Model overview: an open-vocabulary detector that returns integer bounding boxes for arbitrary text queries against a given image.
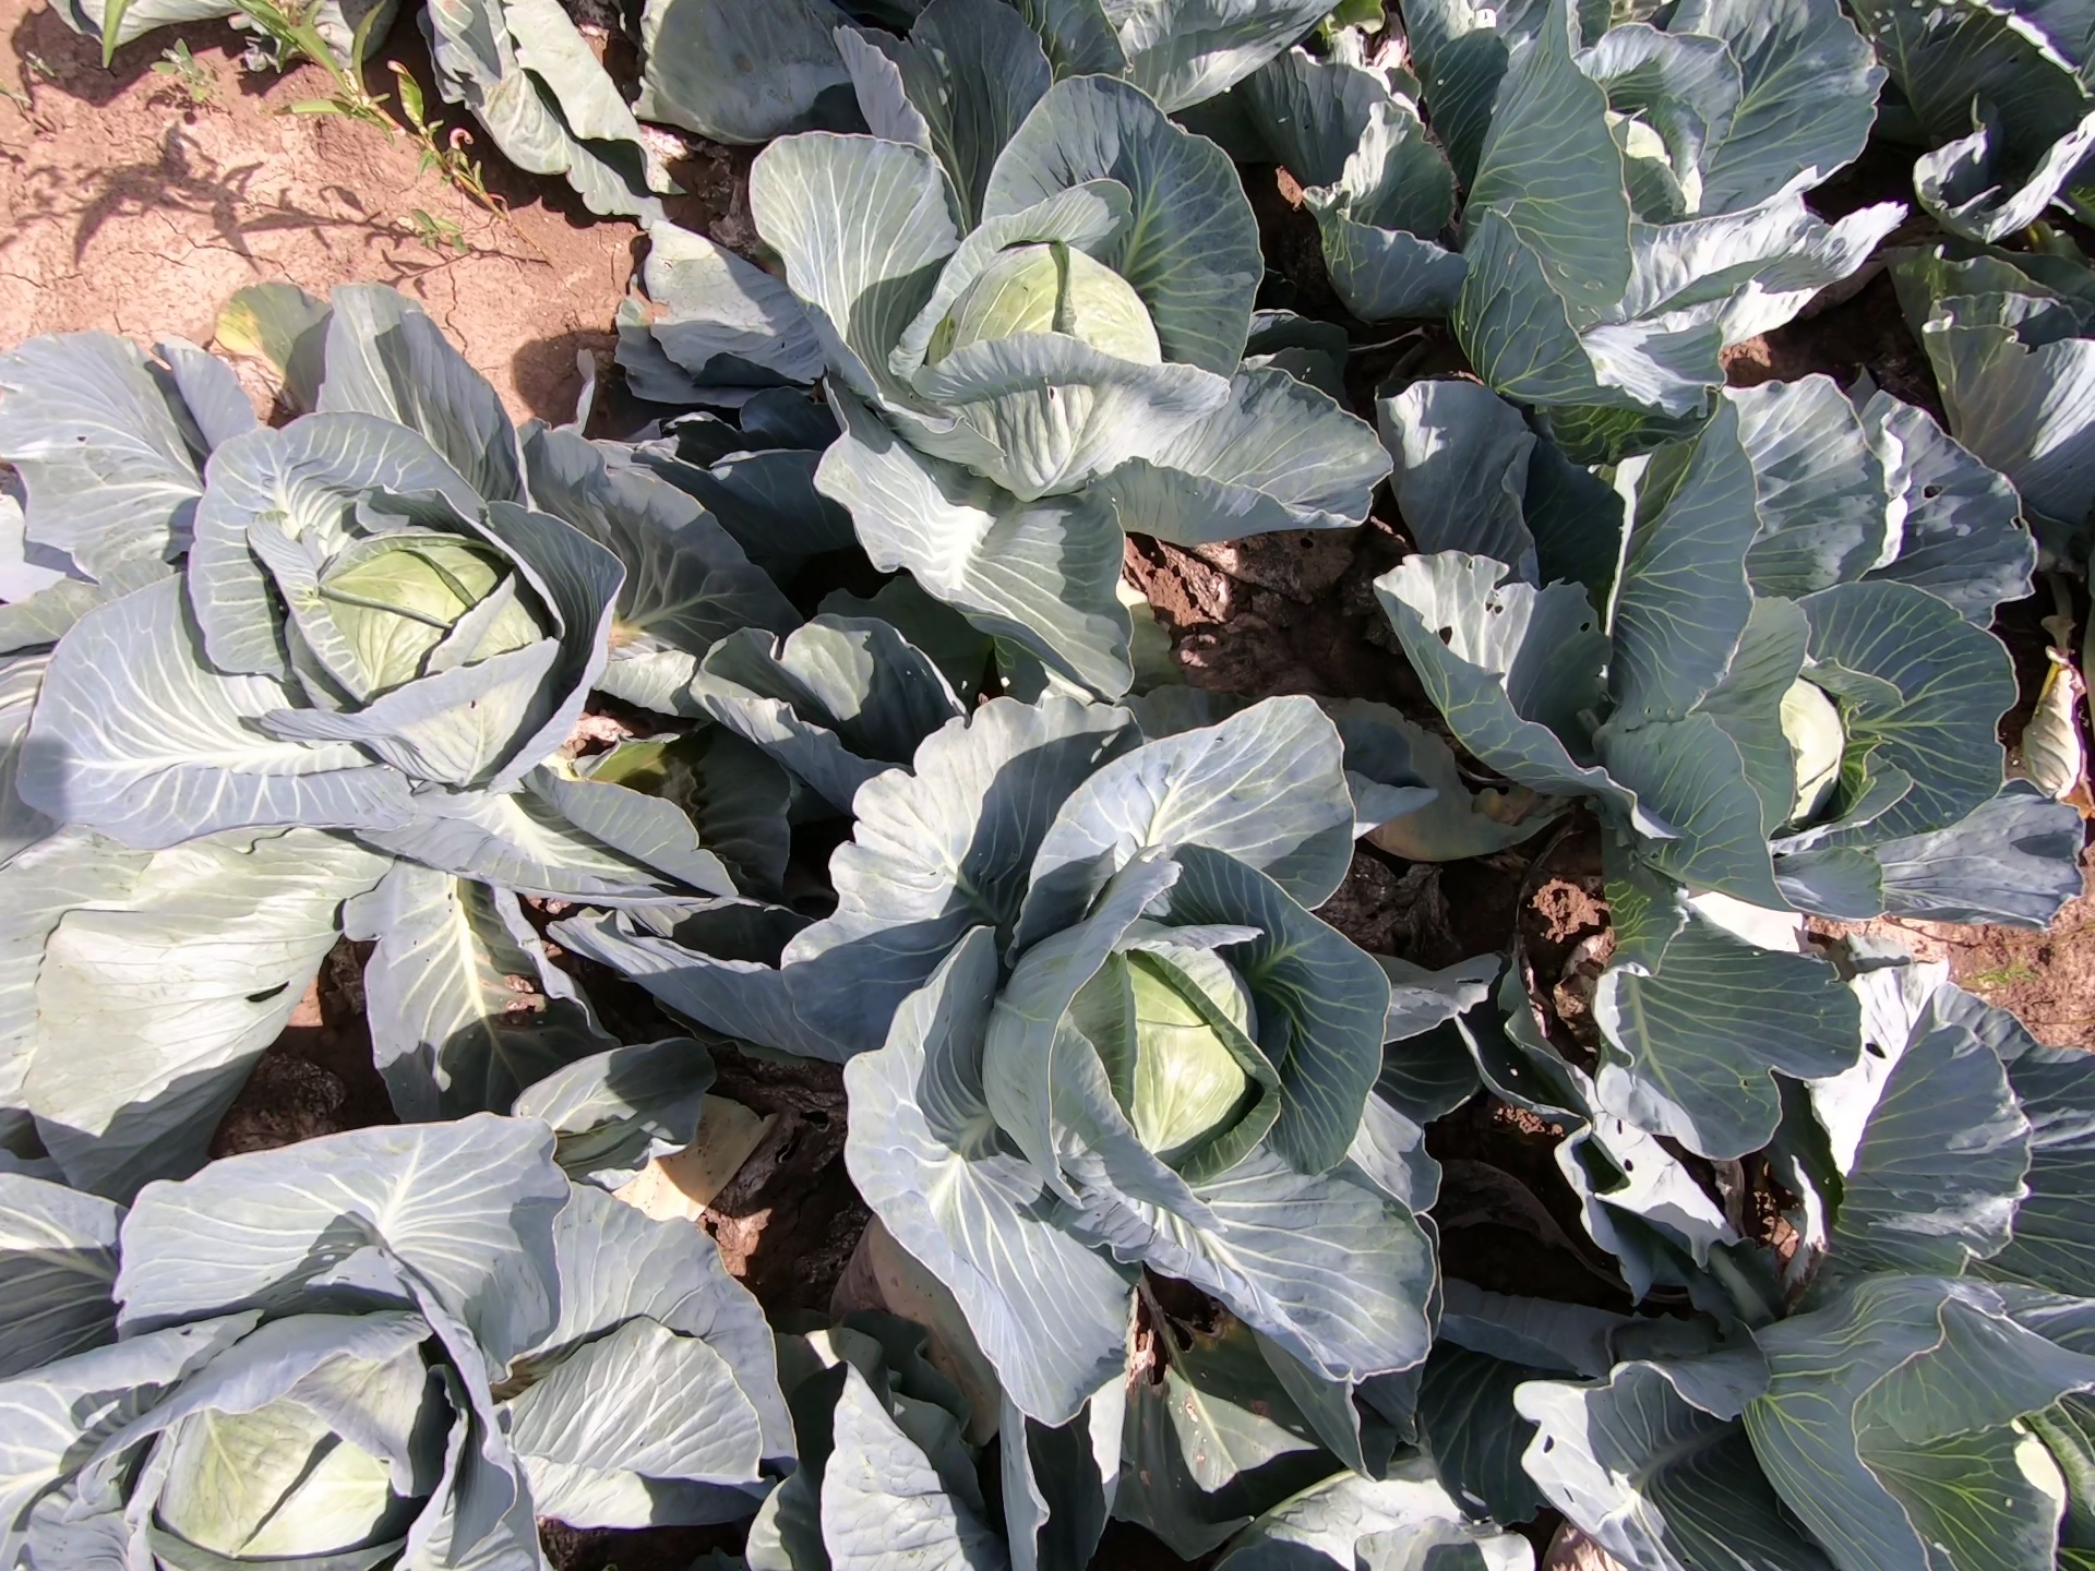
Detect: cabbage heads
[925,241,1166,475]
[1793,1309,2080,1562]
[1703,655,1845,832]
[1573,101,1707,249]
[298,531,551,770]
[997,918,1264,1188]
[146,1314,455,1570]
